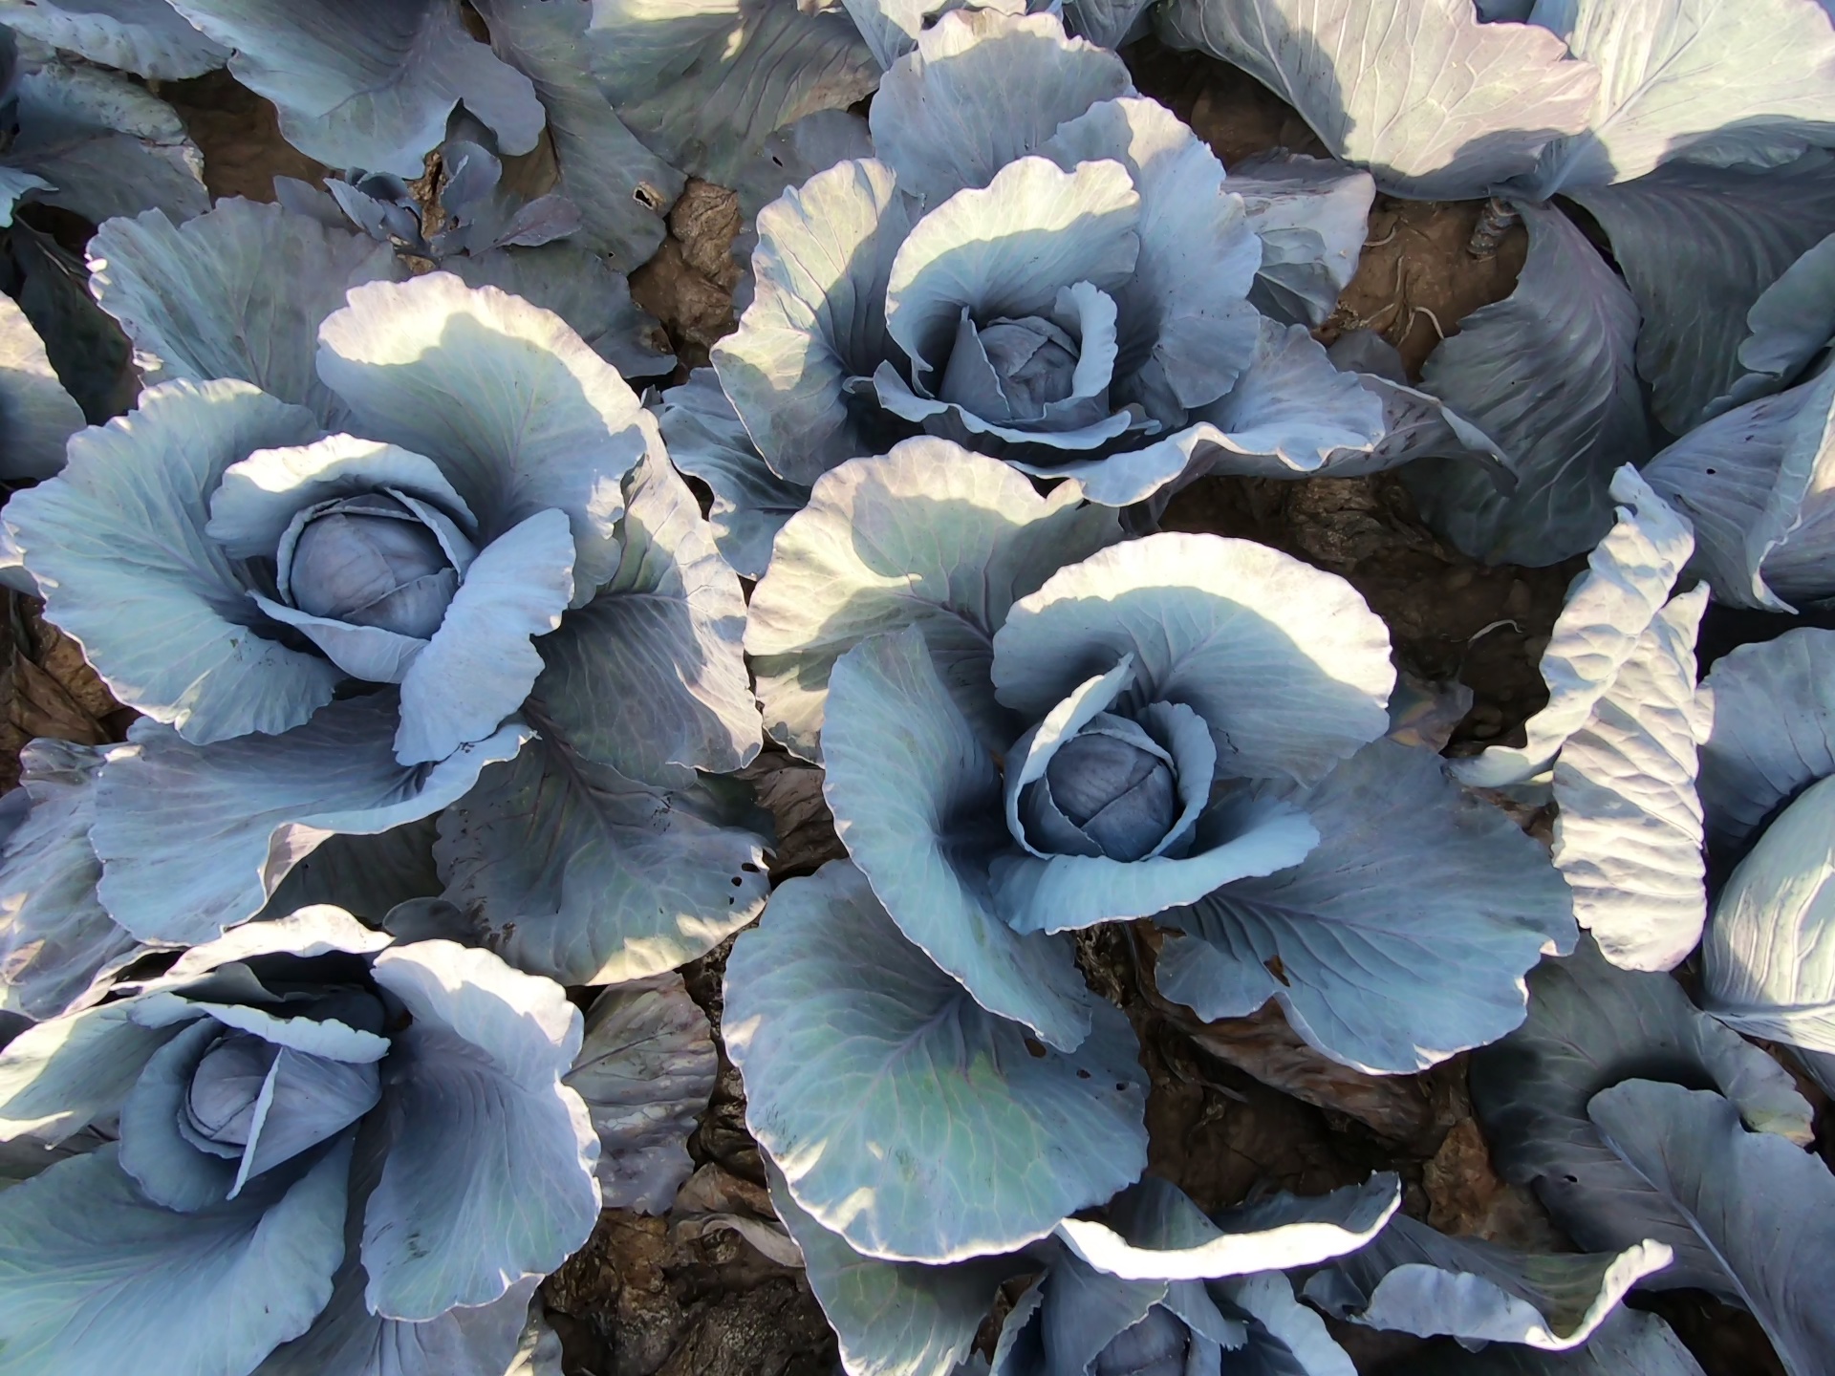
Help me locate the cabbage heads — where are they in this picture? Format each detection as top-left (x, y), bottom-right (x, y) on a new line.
top-left (1045, 1237), bottom-right (1205, 1371)
top-left (961, 318), bottom-right (1092, 441)
top-left (1680, 394), bottom-right (1829, 597)
top-left (291, 504), bottom-right (462, 649)
top-left (1033, 706), bottom-right (1177, 857)
top-left (191, 1035), bottom-right (332, 1150)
